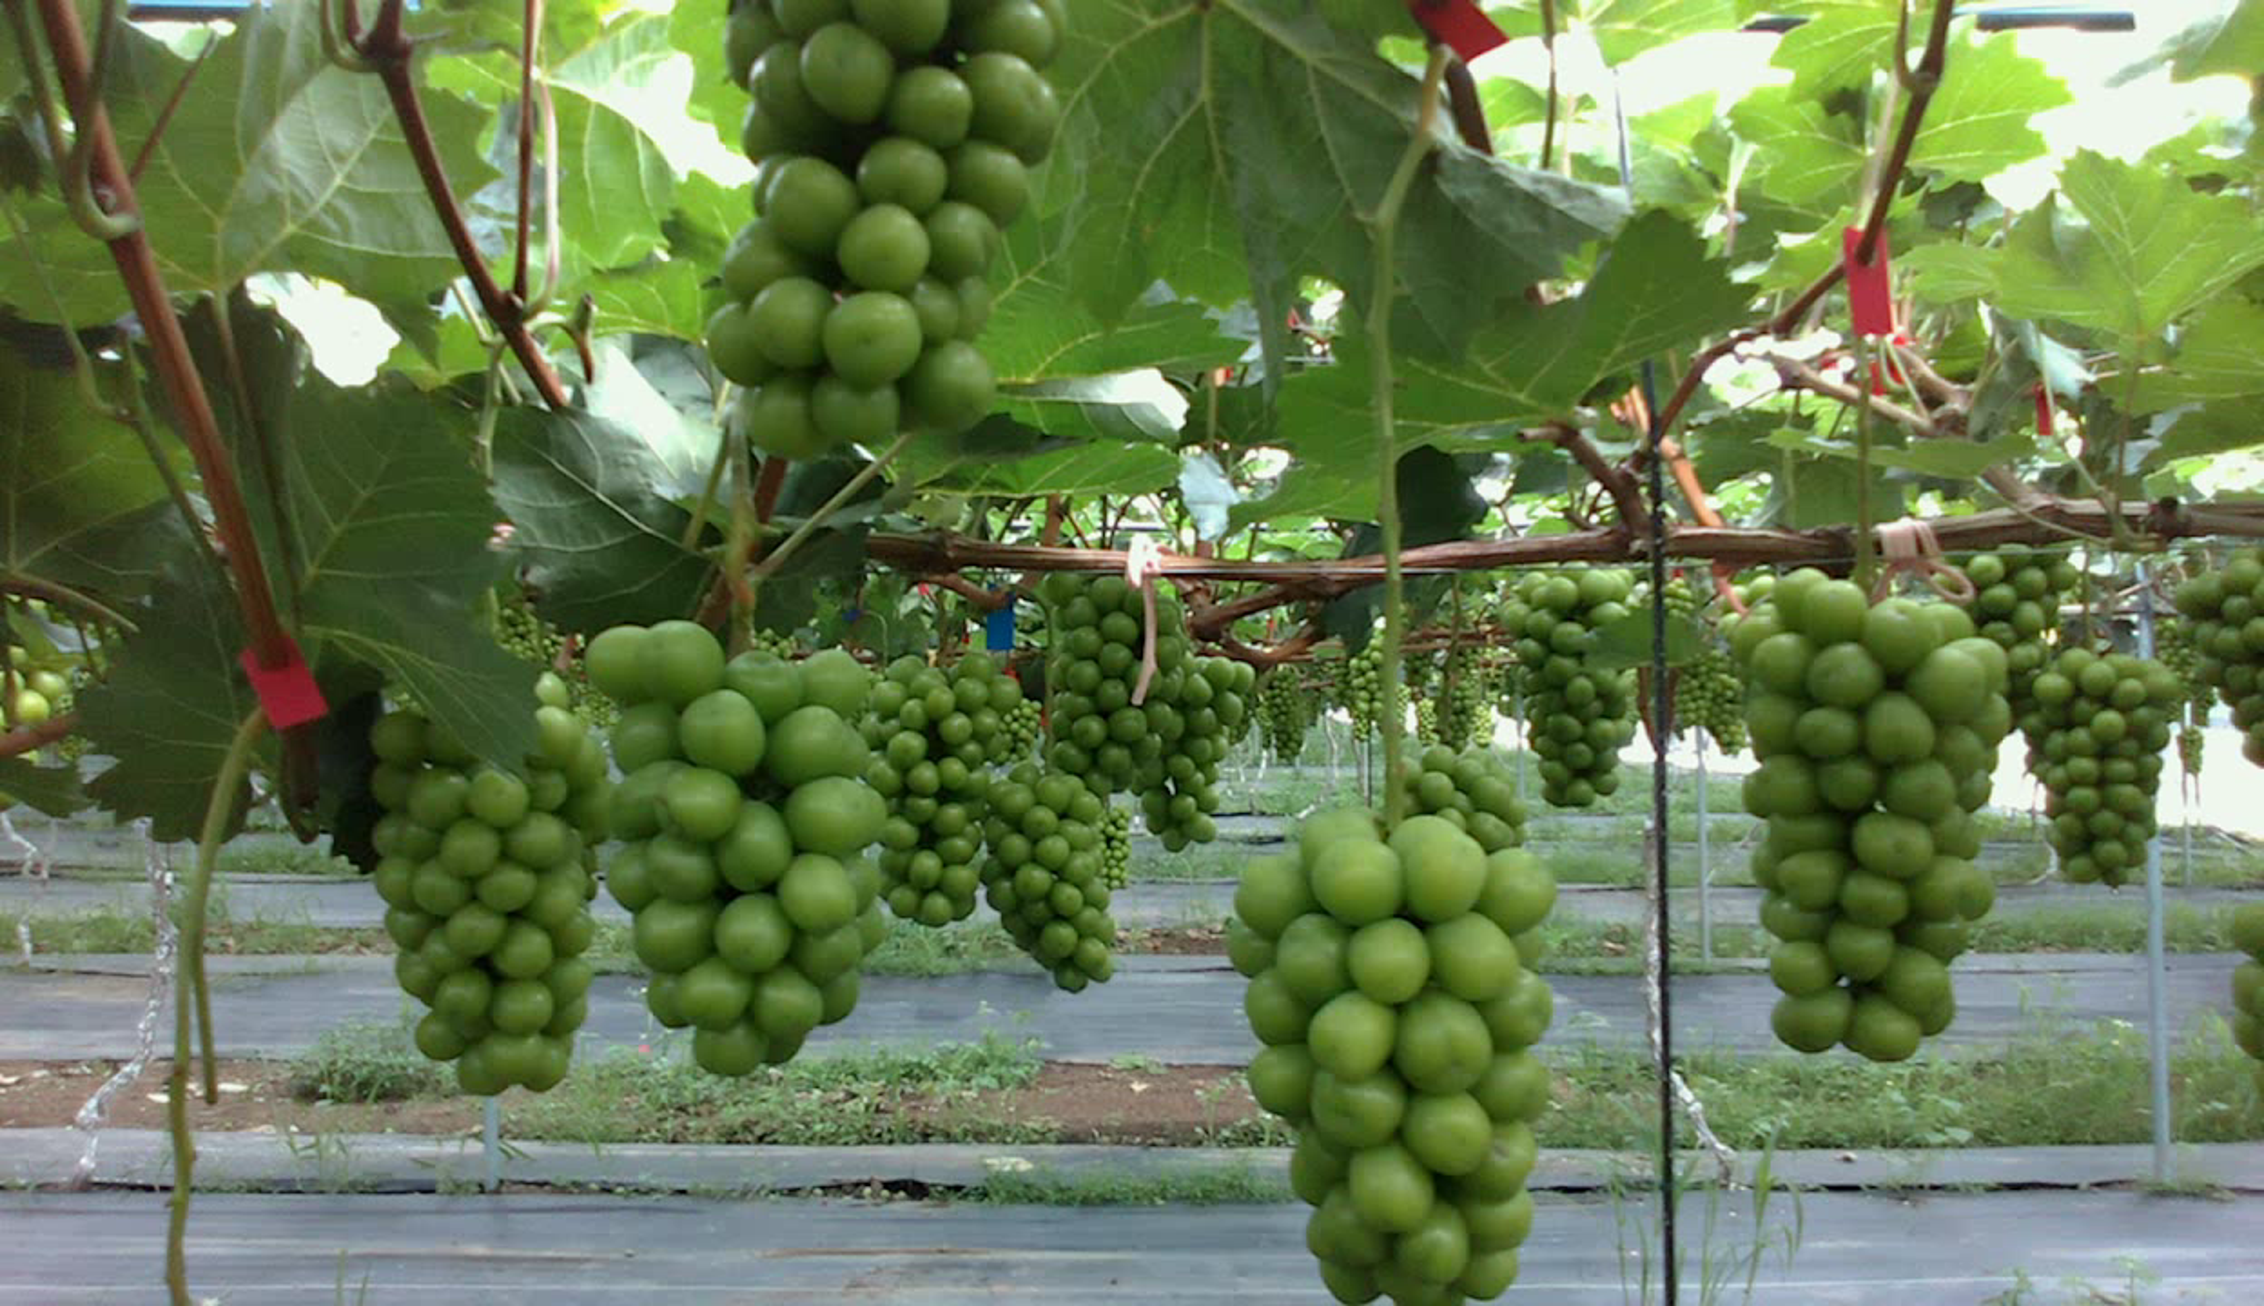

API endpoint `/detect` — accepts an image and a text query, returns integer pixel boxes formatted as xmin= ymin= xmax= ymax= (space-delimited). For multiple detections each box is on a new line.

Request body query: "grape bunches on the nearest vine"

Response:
xmin=370 ymin=673 xmax=615 ymax=1097
xmin=704 ymin=2 xmax=1065 ymax=464
xmin=1223 ymin=805 xmax=1558 ymax=1304
xmin=1727 ymin=568 xmax=2012 ymax=1065
xmin=582 ymin=620 xmax=891 ymax=1076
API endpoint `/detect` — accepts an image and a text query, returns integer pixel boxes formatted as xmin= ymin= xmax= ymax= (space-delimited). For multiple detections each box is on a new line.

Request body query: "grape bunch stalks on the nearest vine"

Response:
xmin=475 ymin=336 xmax=508 ymax=646
xmin=167 ymin=706 xmax=263 ymax=1299
xmin=720 ymin=408 xmax=758 ymax=660
xmin=1364 ymin=45 xmax=1453 ymax=842
xmin=1854 ymin=337 xmax=1879 ymax=604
